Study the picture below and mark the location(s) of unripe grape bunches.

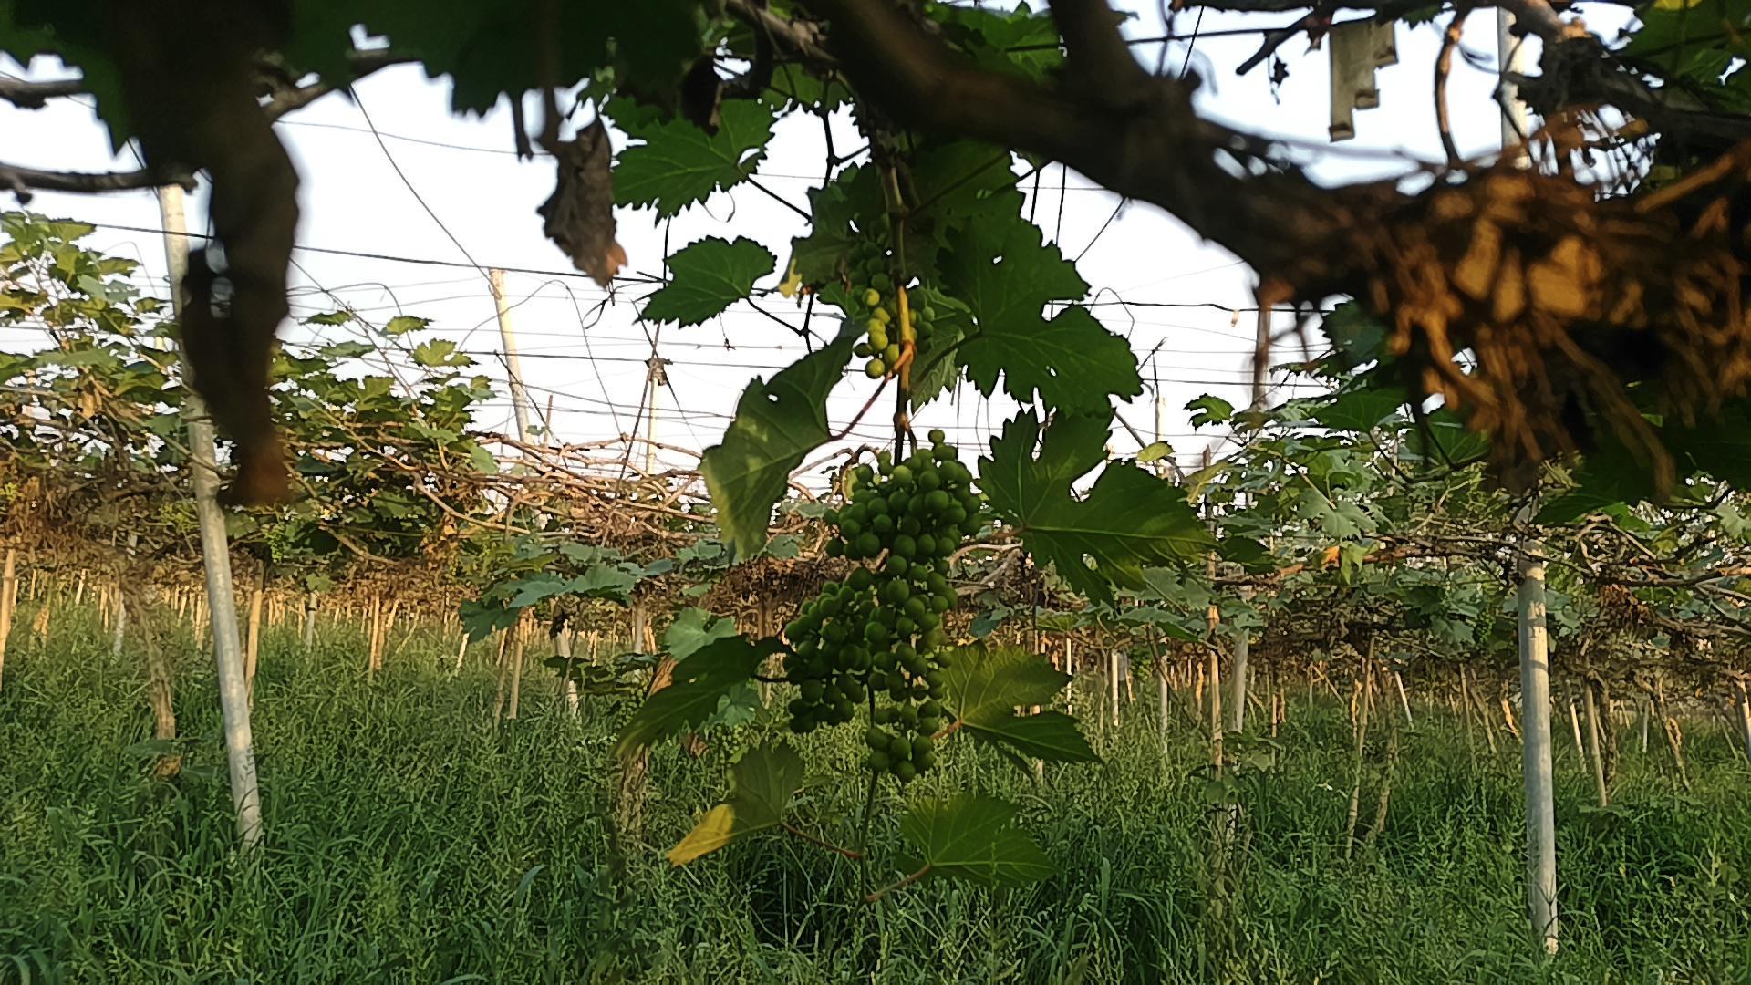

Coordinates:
[783,432,983,782]
[849,250,933,376]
